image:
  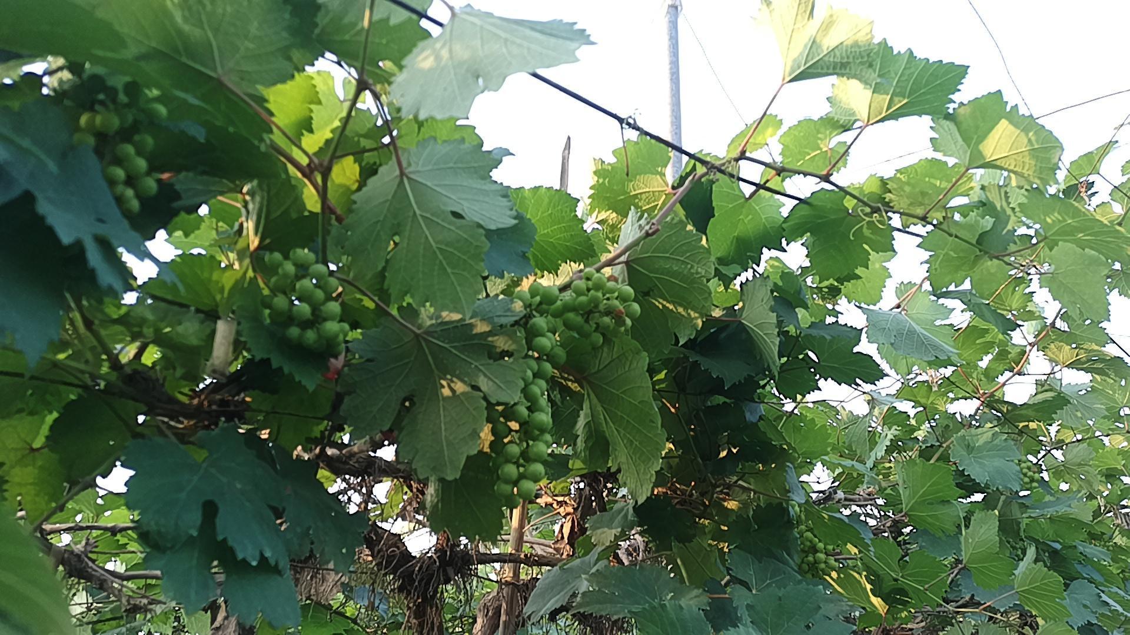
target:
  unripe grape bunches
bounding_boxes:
[792,504,840,579]
[257,249,350,358]
[494,270,639,508]
[62,74,167,217]
[1019,459,1045,492]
